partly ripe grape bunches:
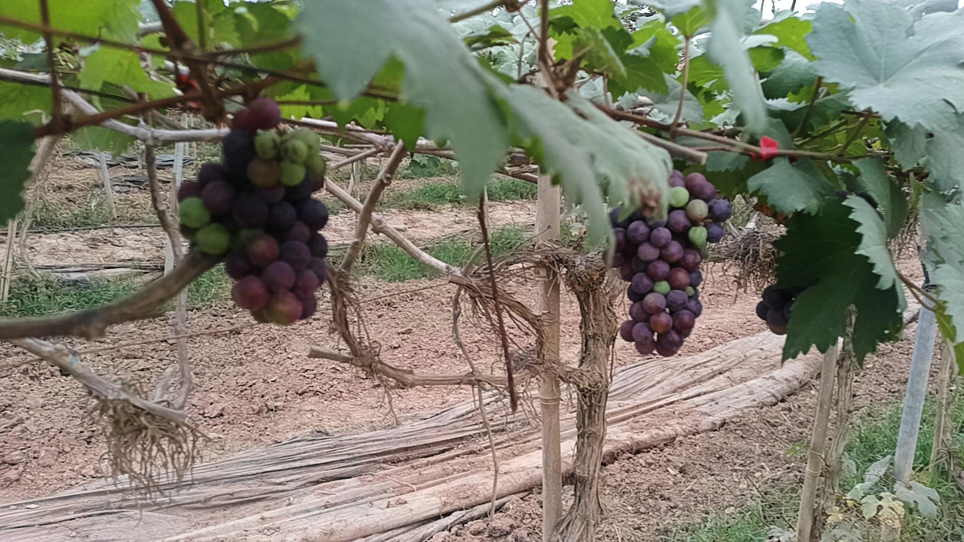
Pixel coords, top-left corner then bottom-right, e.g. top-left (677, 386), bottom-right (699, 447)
top-left (610, 170), bottom-right (731, 355)
top-left (179, 98), bottom-right (328, 324)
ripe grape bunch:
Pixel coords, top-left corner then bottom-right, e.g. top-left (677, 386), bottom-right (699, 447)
top-left (756, 285), bottom-right (806, 335)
